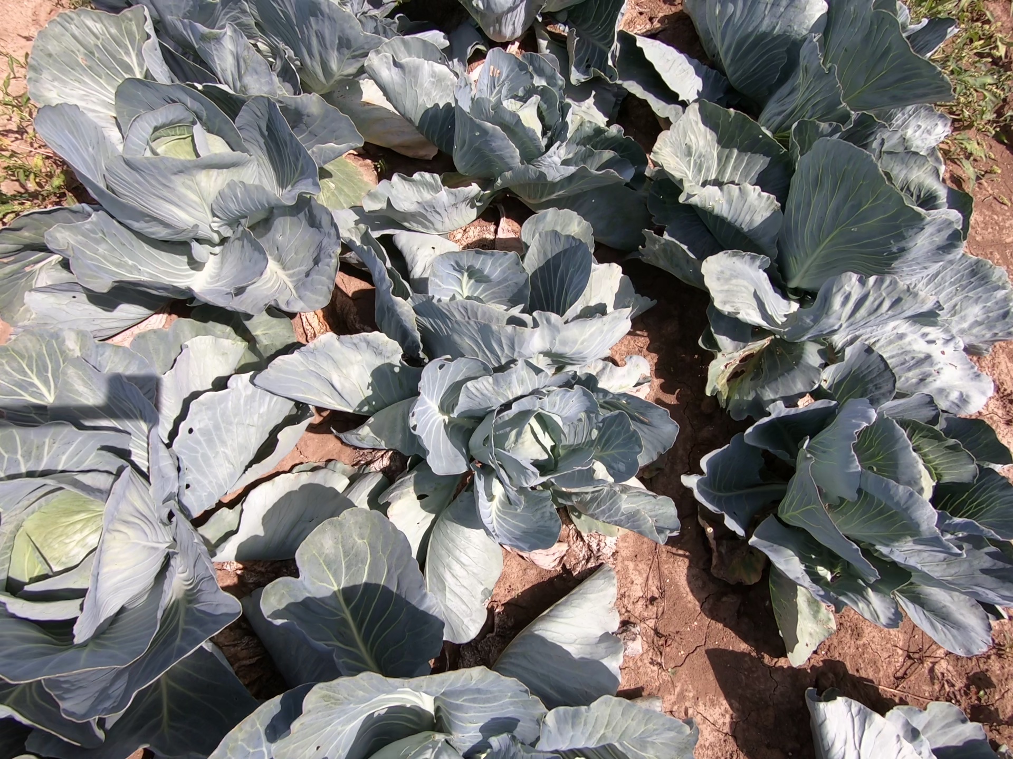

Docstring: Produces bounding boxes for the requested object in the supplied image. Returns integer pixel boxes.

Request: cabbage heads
[870,440,935,508]
[503,410,559,464]
[368,731,465,757]
[6,482,168,617]
[490,96,544,157]
[138,126,246,243]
